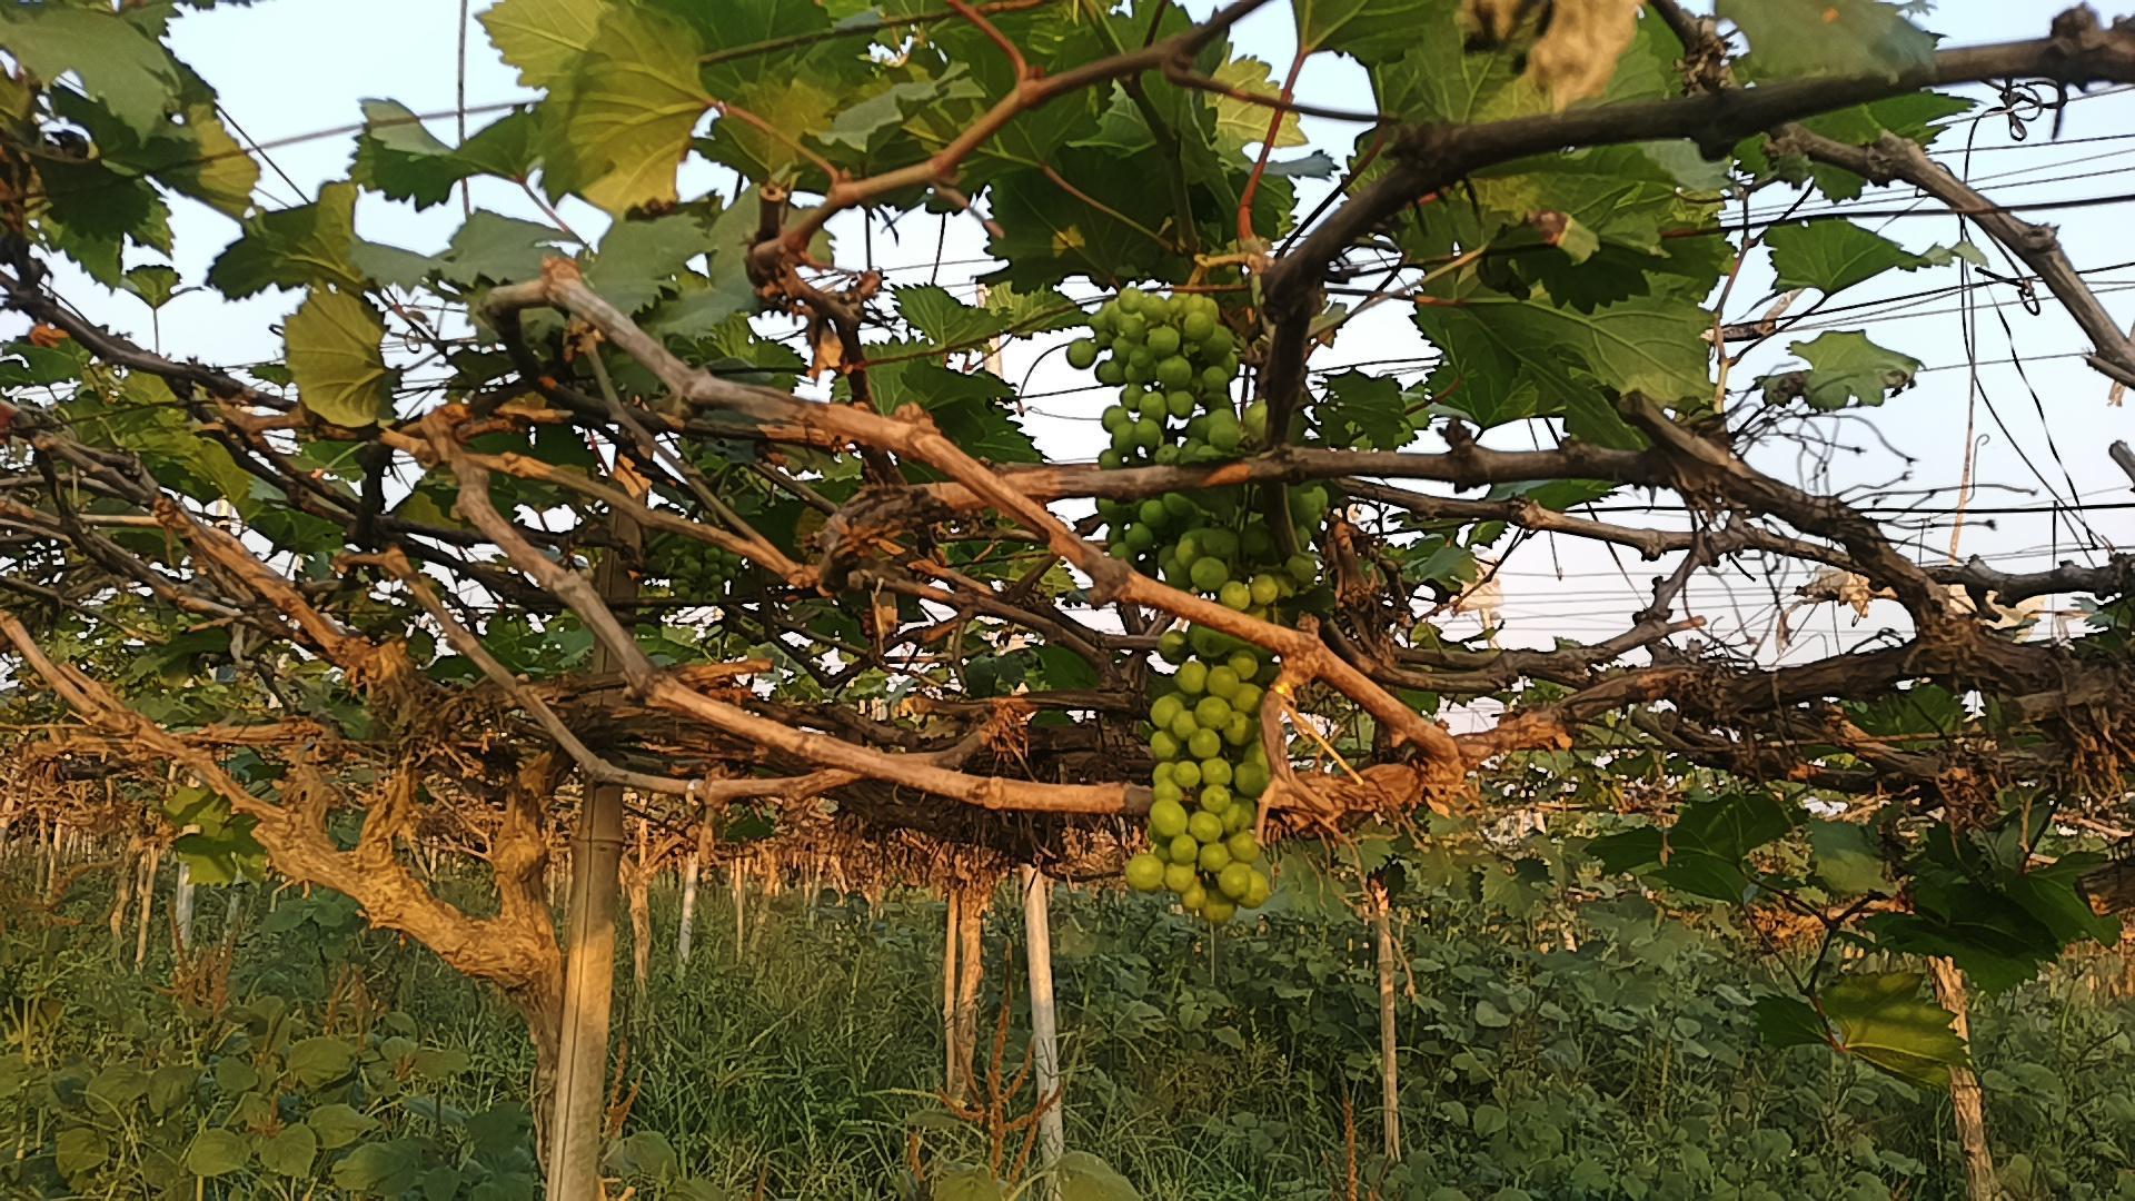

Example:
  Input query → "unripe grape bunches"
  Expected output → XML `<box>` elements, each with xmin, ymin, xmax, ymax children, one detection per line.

<box><xmin>672</xmin><ymin>548</ymin><xmax>742</xmax><ymax>603</ymax></box>
<box><xmin>1067</xmin><ymin>289</ymin><xmax>1330</xmax><ymax>618</ymax></box>
<box><xmin>1129</xmin><ymin>626</ymin><xmax>1268</xmax><ymax>921</ymax></box>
